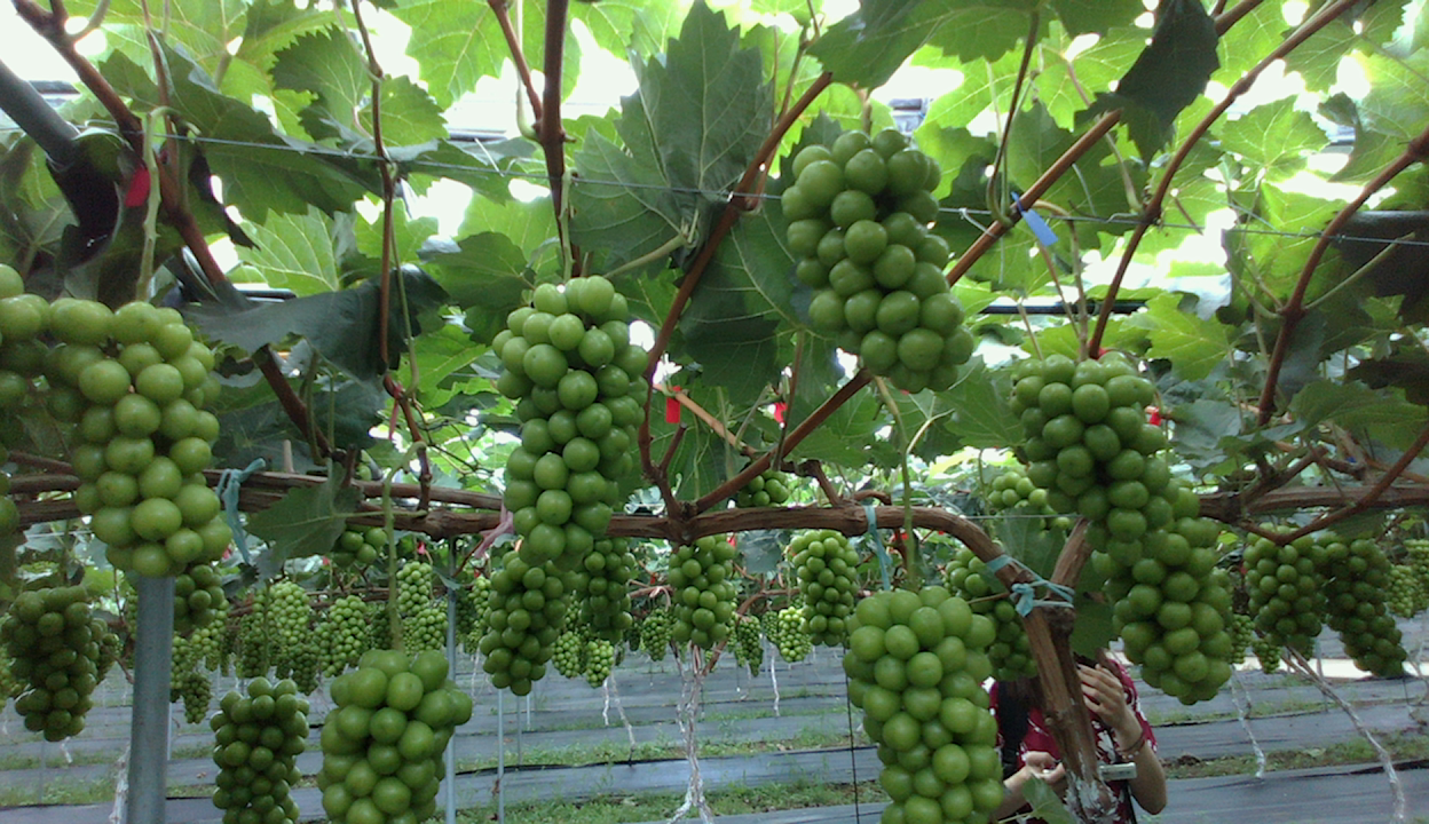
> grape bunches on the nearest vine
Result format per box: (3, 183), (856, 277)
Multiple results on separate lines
(491, 276), (649, 572)
(313, 648), (473, 823)
(779, 129), (974, 393)
(844, 585), (1002, 823)
(1090, 481), (1233, 705)
(1008, 350), (1178, 565)
(45, 300), (235, 578)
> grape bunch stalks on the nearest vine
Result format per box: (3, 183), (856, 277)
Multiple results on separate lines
(874, 381), (917, 593)
(852, 86), (870, 134)
(380, 443), (420, 650)
(560, 169), (574, 280)
(139, 105), (190, 299)
(1032, 200), (1089, 362)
